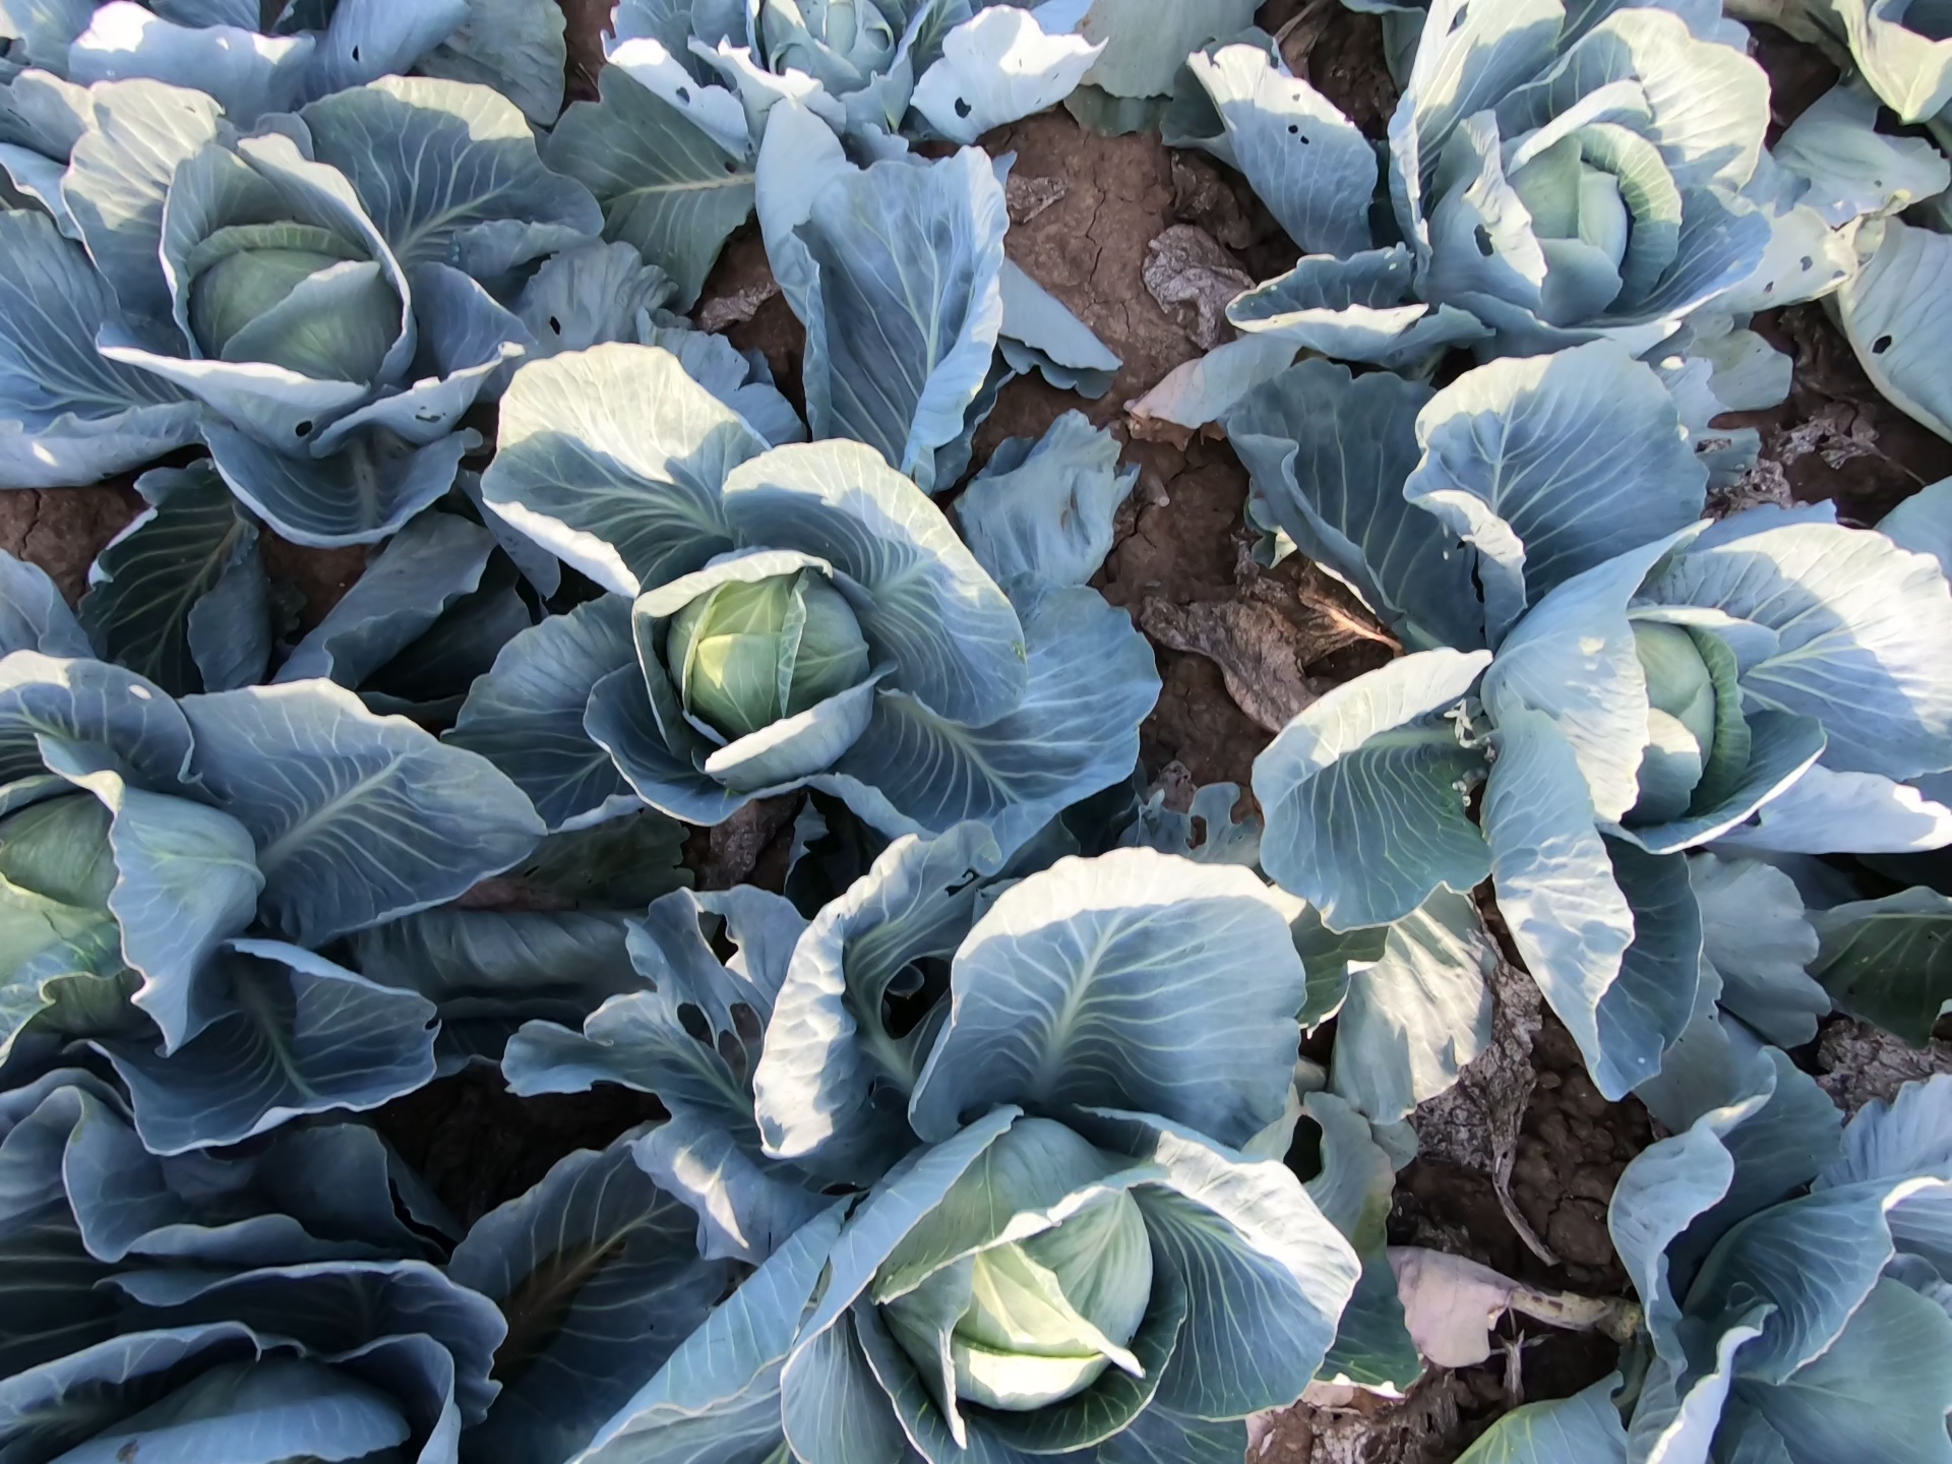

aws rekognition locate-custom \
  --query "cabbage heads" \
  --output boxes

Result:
[769,0,907,130]
[190,213,400,409]
[669,558,872,741]
[1502,152,1629,302]
[2,794,222,1029]
[1525,605,1725,810]
[889,1147,1155,1410]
